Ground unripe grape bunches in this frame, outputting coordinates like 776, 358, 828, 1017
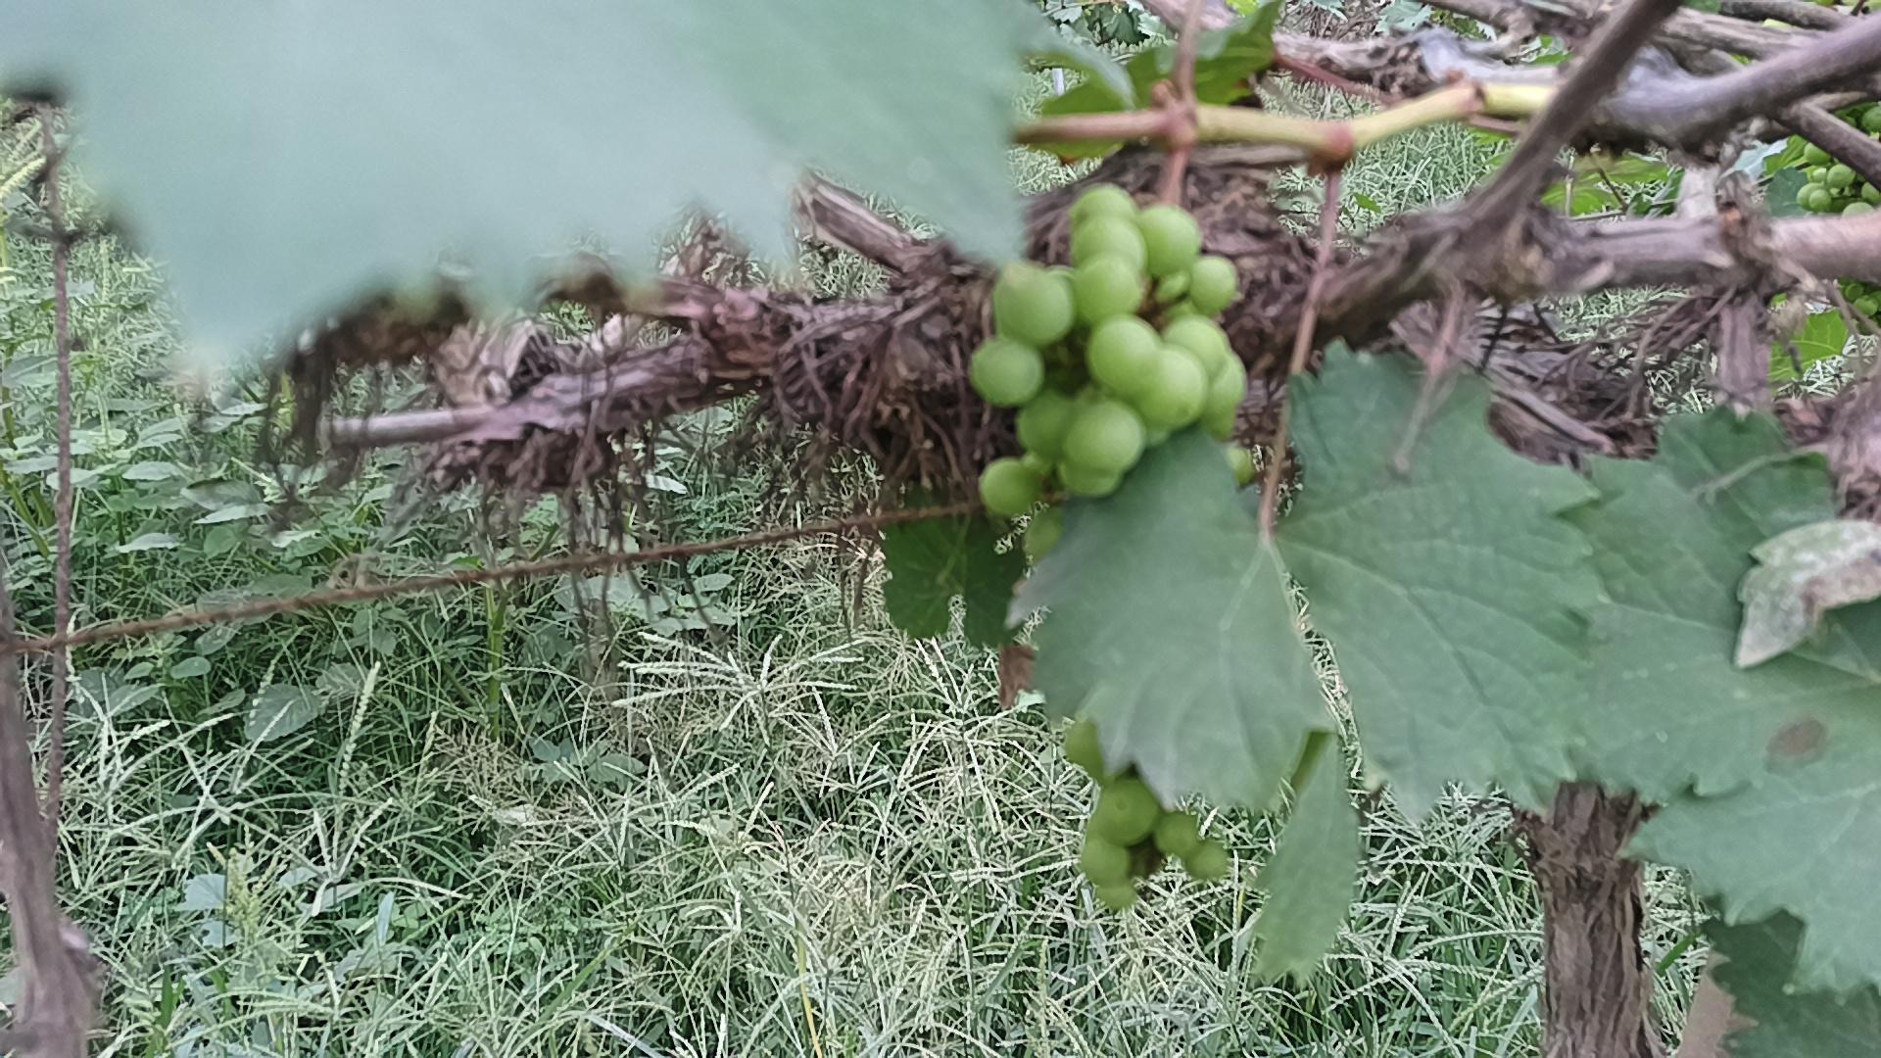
973, 187, 1253, 910
1786, 138, 1880, 213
